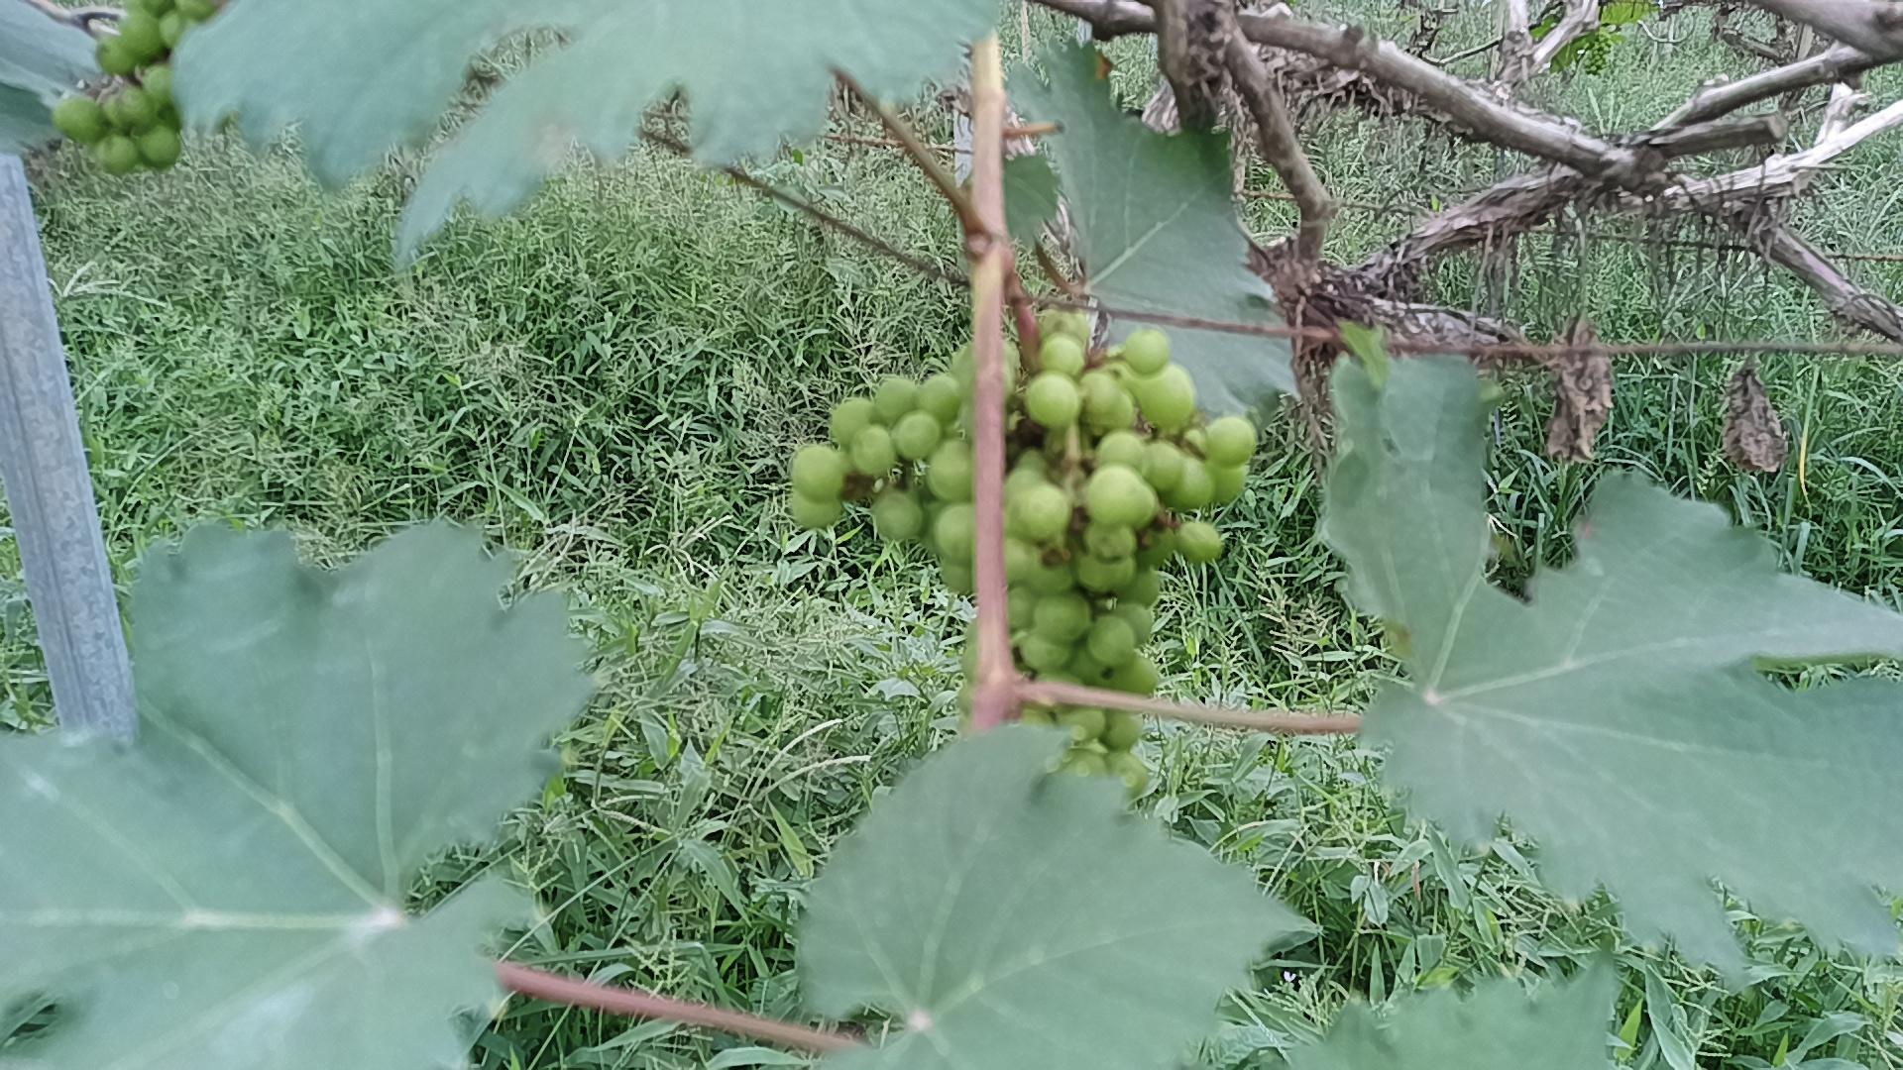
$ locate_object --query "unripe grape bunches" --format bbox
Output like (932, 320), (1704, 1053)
(55, 0), (227, 174)
(791, 308), (1259, 797)
(1575, 31), (1616, 75)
